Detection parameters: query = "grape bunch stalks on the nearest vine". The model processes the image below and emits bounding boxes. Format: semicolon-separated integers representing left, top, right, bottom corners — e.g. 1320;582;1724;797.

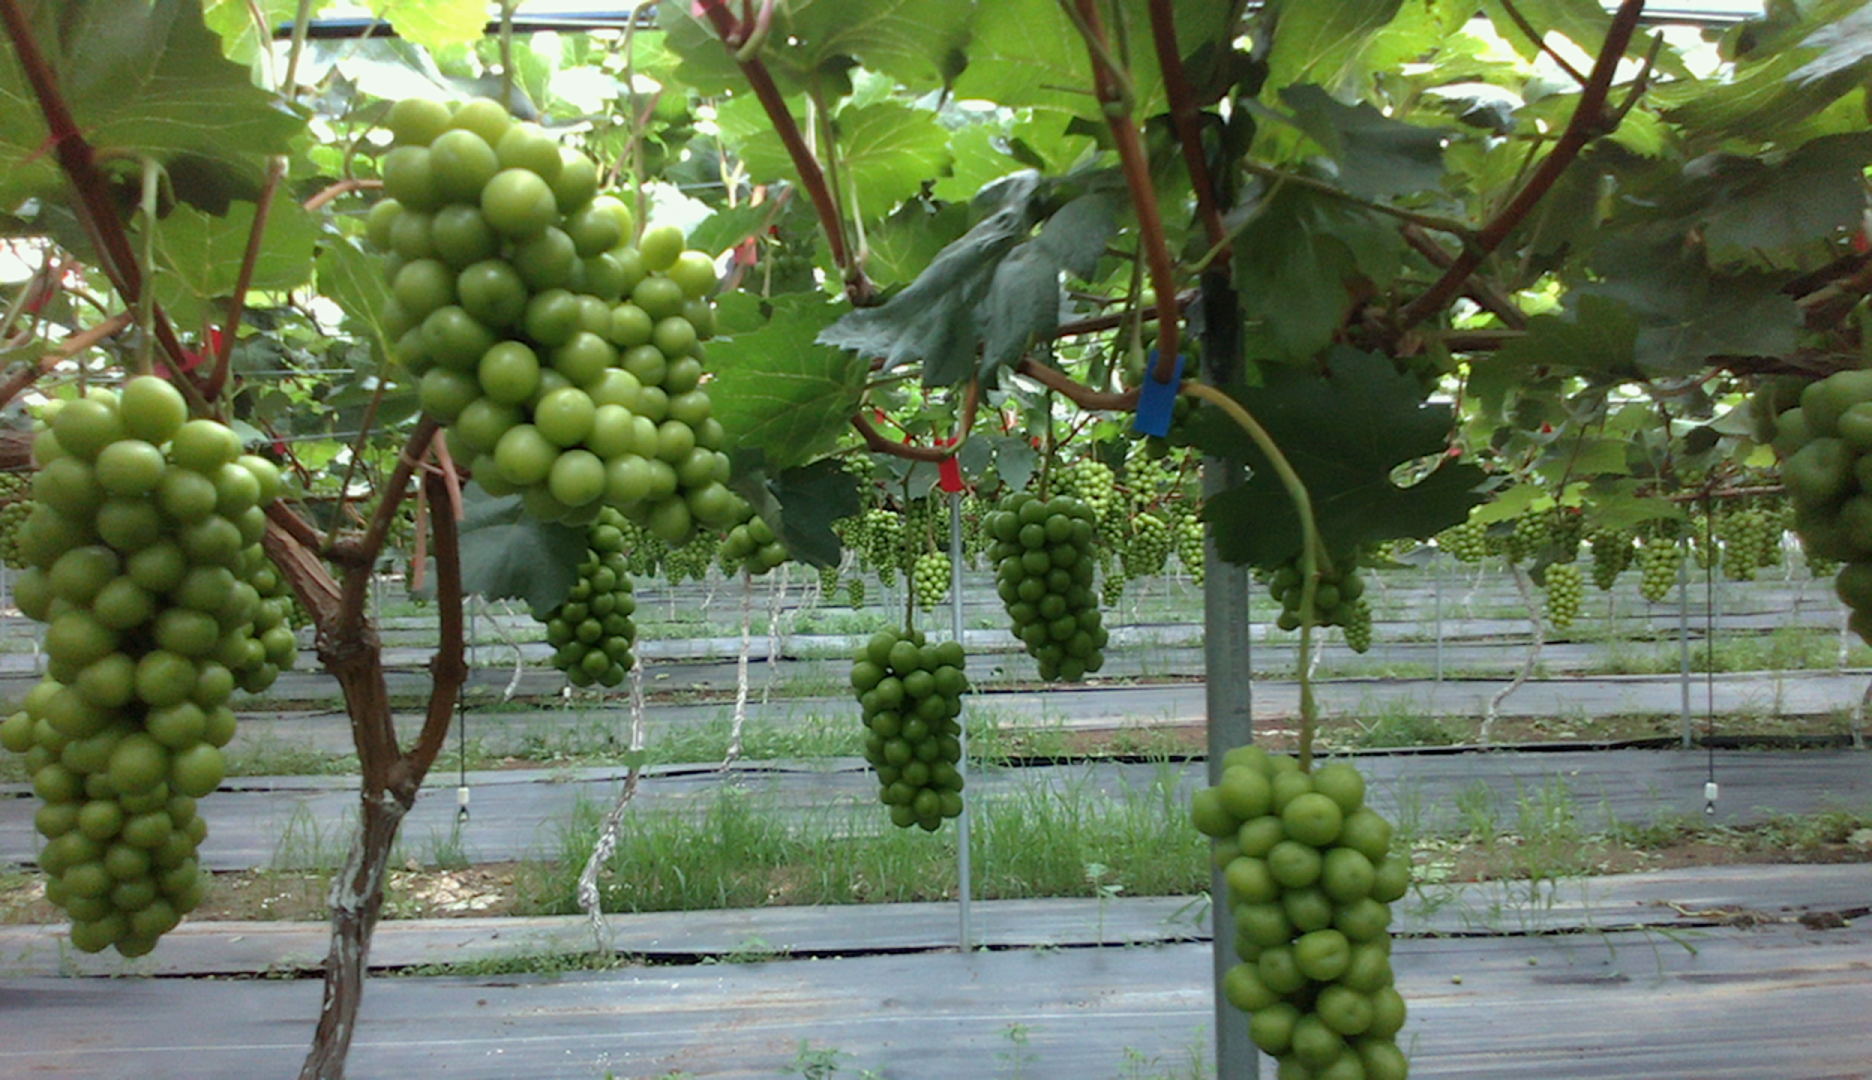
499;1;511;109
621;1;655;232
90;145;159;375
1176;379;1317;775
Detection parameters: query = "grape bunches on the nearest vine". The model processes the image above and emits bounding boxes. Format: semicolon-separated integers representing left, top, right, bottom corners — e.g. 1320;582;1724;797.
607;198;735;547
7;375;280;799
1188;741;1408;1078
369;96;657;526
0;684;205;957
